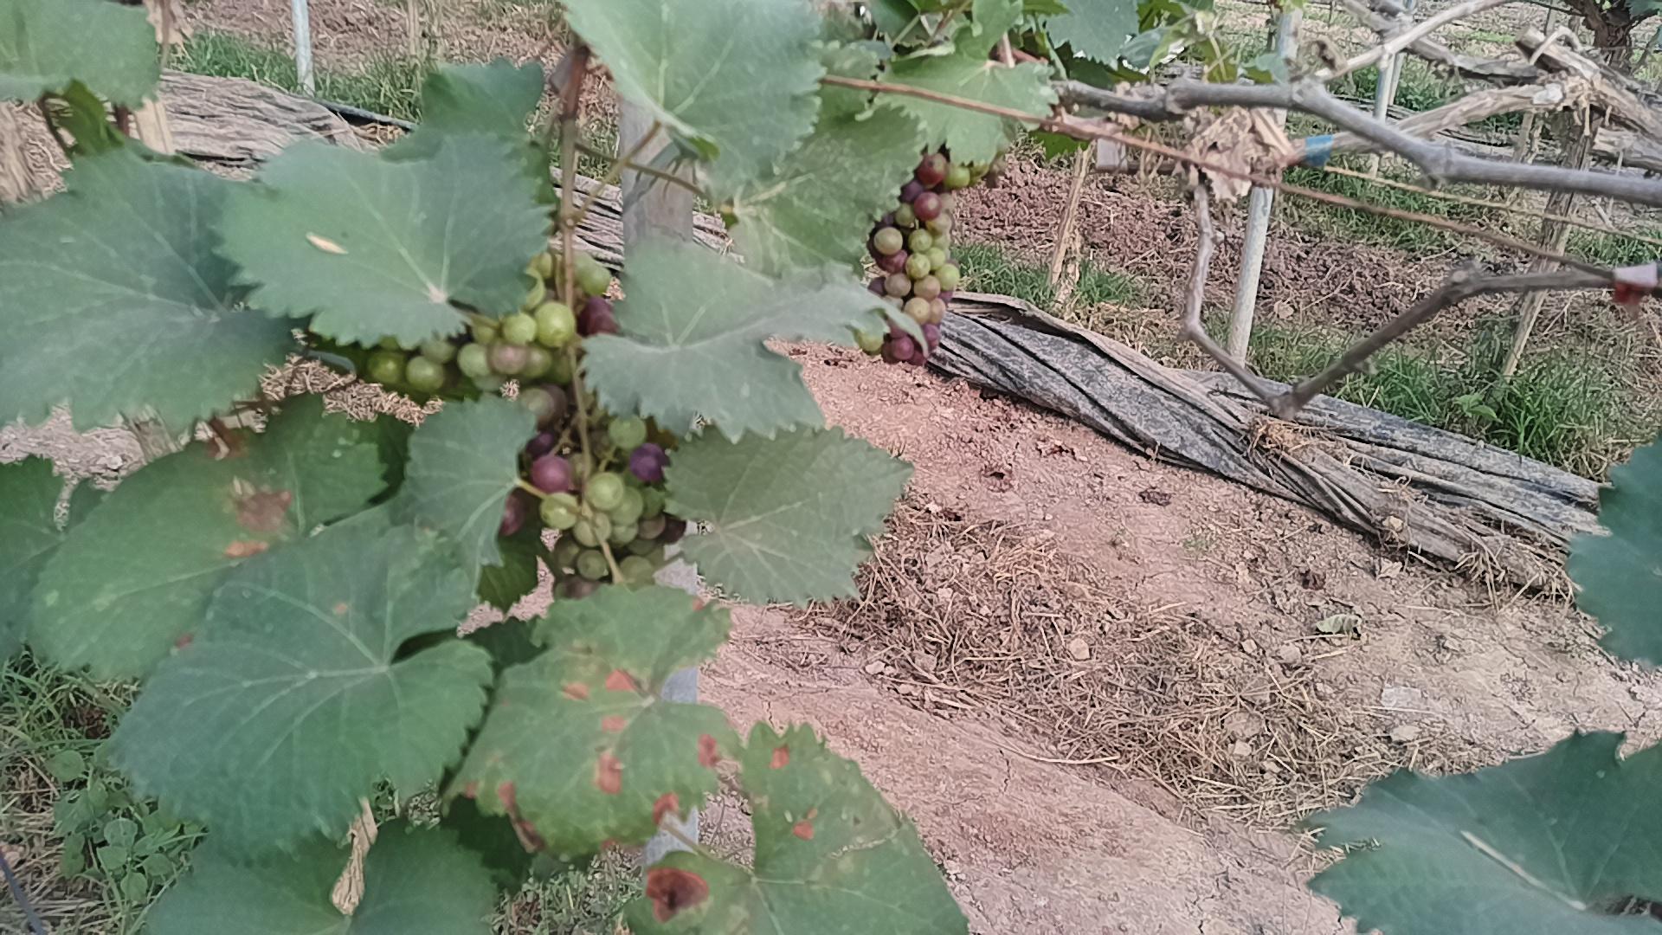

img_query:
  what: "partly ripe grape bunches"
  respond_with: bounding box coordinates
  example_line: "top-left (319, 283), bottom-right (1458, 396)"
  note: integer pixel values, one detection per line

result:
top-left (858, 146), bottom-right (995, 364)
top-left (363, 246), bottom-right (683, 596)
